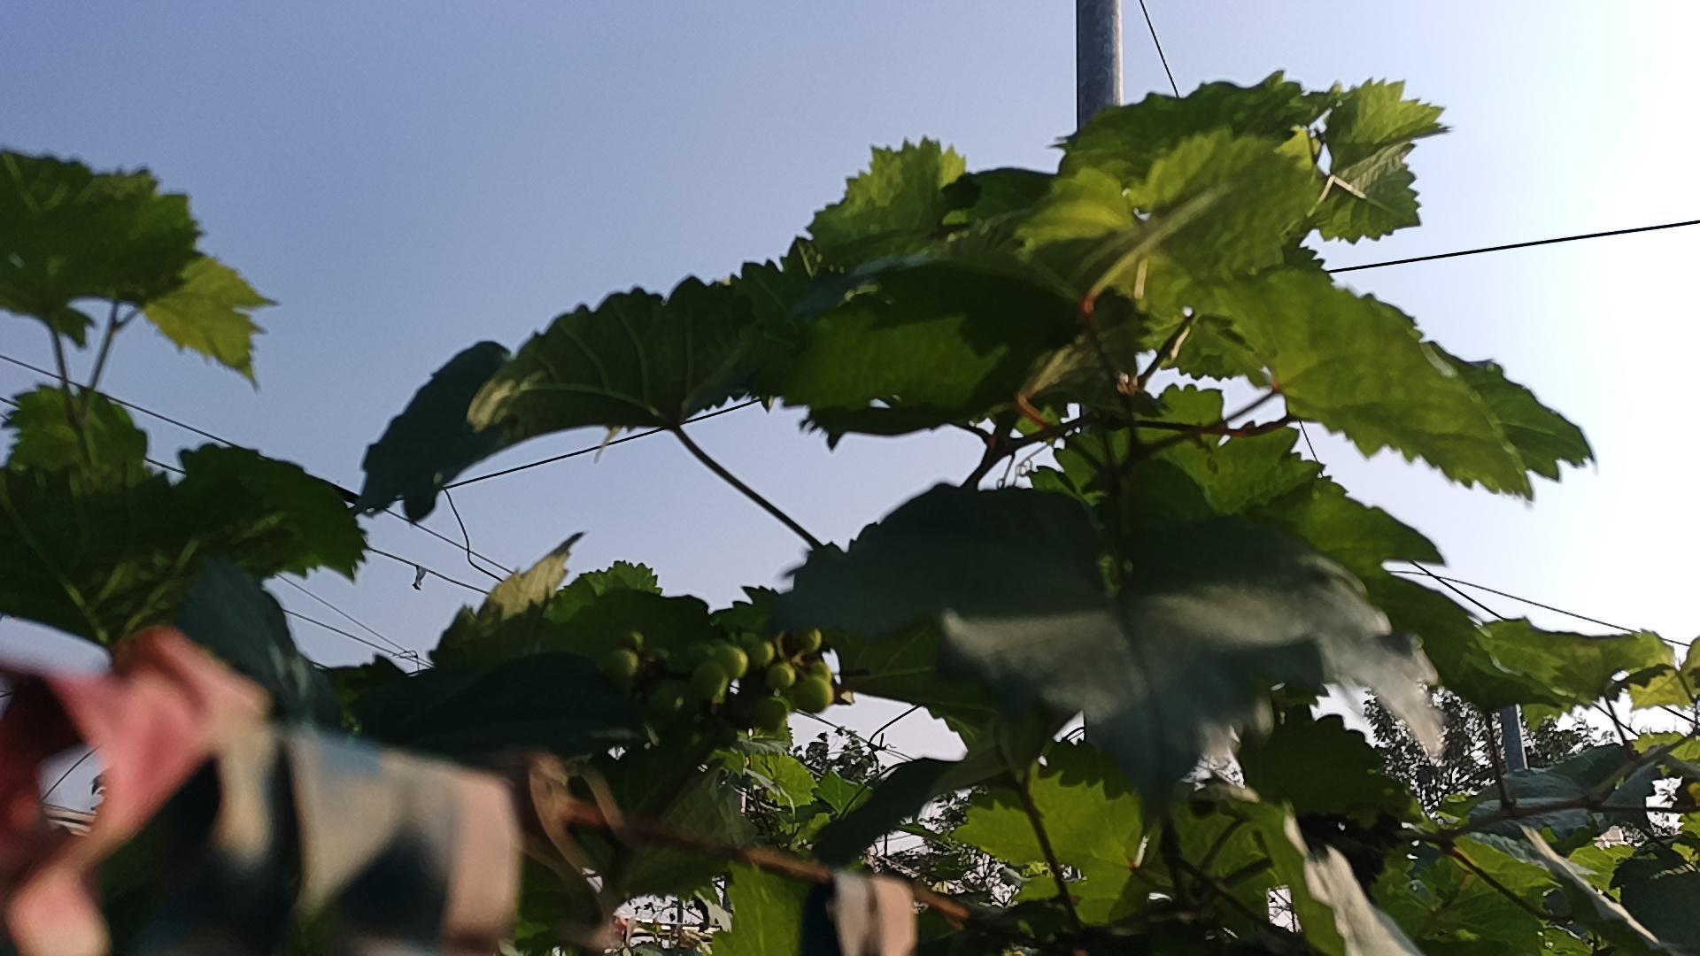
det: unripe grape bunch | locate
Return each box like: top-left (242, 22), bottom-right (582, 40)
top-left (601, 622), bottom-right (837, 736)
